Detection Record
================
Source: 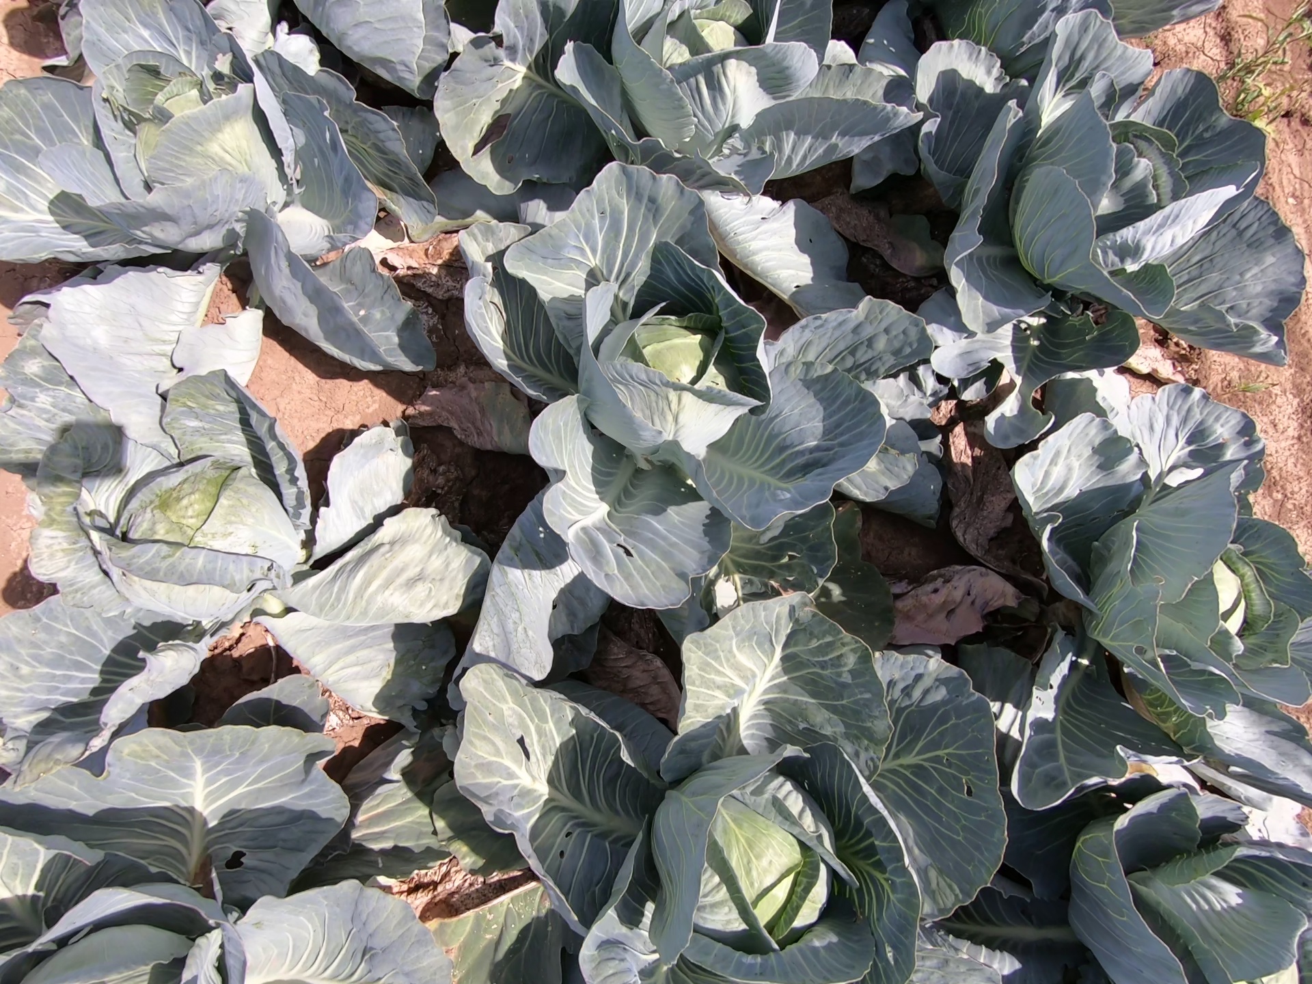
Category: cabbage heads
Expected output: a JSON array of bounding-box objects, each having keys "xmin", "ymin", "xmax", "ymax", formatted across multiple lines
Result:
[
  {"xmin": 1017, "ymin": 154, "xmax": 1149, "ymax": 272},
  {"xmin": 109, "ymin": 458, "xmax": 296, "ymax": 618},
  {"xmin": 1125, "ymin": 871, "xmax": 1300, "ymax": 983},
  {"xmin": 657, "ymin": 766, "xmax": 834, "ymax": 954},
  {"xmin": 135, "ymin": 92, "xmax": 263, "ymax": 203},
  {"xmin": 20, "ymin": 920, "xmax": 222, "ymax": 983},
  {"xmin": 1157, "ymin": 550, "xmax": 1247, "ymax": 646},
  {"xmin": 598, "ymin": 313, "xmax": 746, "ymax": 454},
  {"xmin": 642, "ymin": 12, "xmax": 763, "ymax": 148}
]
